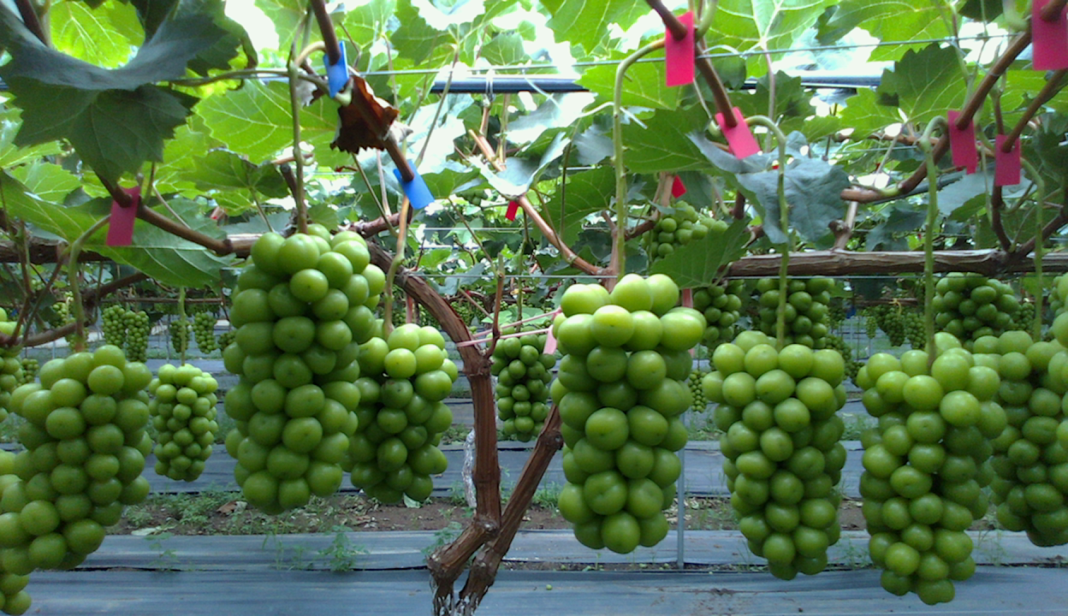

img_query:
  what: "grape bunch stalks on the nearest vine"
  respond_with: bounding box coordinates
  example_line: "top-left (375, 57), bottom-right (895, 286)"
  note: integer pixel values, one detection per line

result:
top-left (744, 116), bottom-right (789, 353)
top-left (922, 116), bottom-right (949, 368)
top-left (69, 215), bottom-right (110, 353)
top-left (614, 39), bottom-right (665, 281)
top-left (290, 41), bottom-right (327, 234)
top-left (383, 196), bottom-right (409, 342)
top-left (1021, 157), bottom-right (1045, 341)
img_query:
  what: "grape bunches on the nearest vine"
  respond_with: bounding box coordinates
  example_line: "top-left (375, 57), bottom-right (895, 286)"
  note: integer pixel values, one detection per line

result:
top-left (223, 224), bottom-right (387, 518)
top-left (857, 332), bottom-right (1008, 607)
top-left (972, 330), bottom-right (1067, 548)
top-left (549, 273), bottom-right (706, 554)
top-left (0, 345), bottom-right (153, 576)
top-left (701, 332), bottom-right (846, 581)
top-left (343, 320), bottom-right (460, 505)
